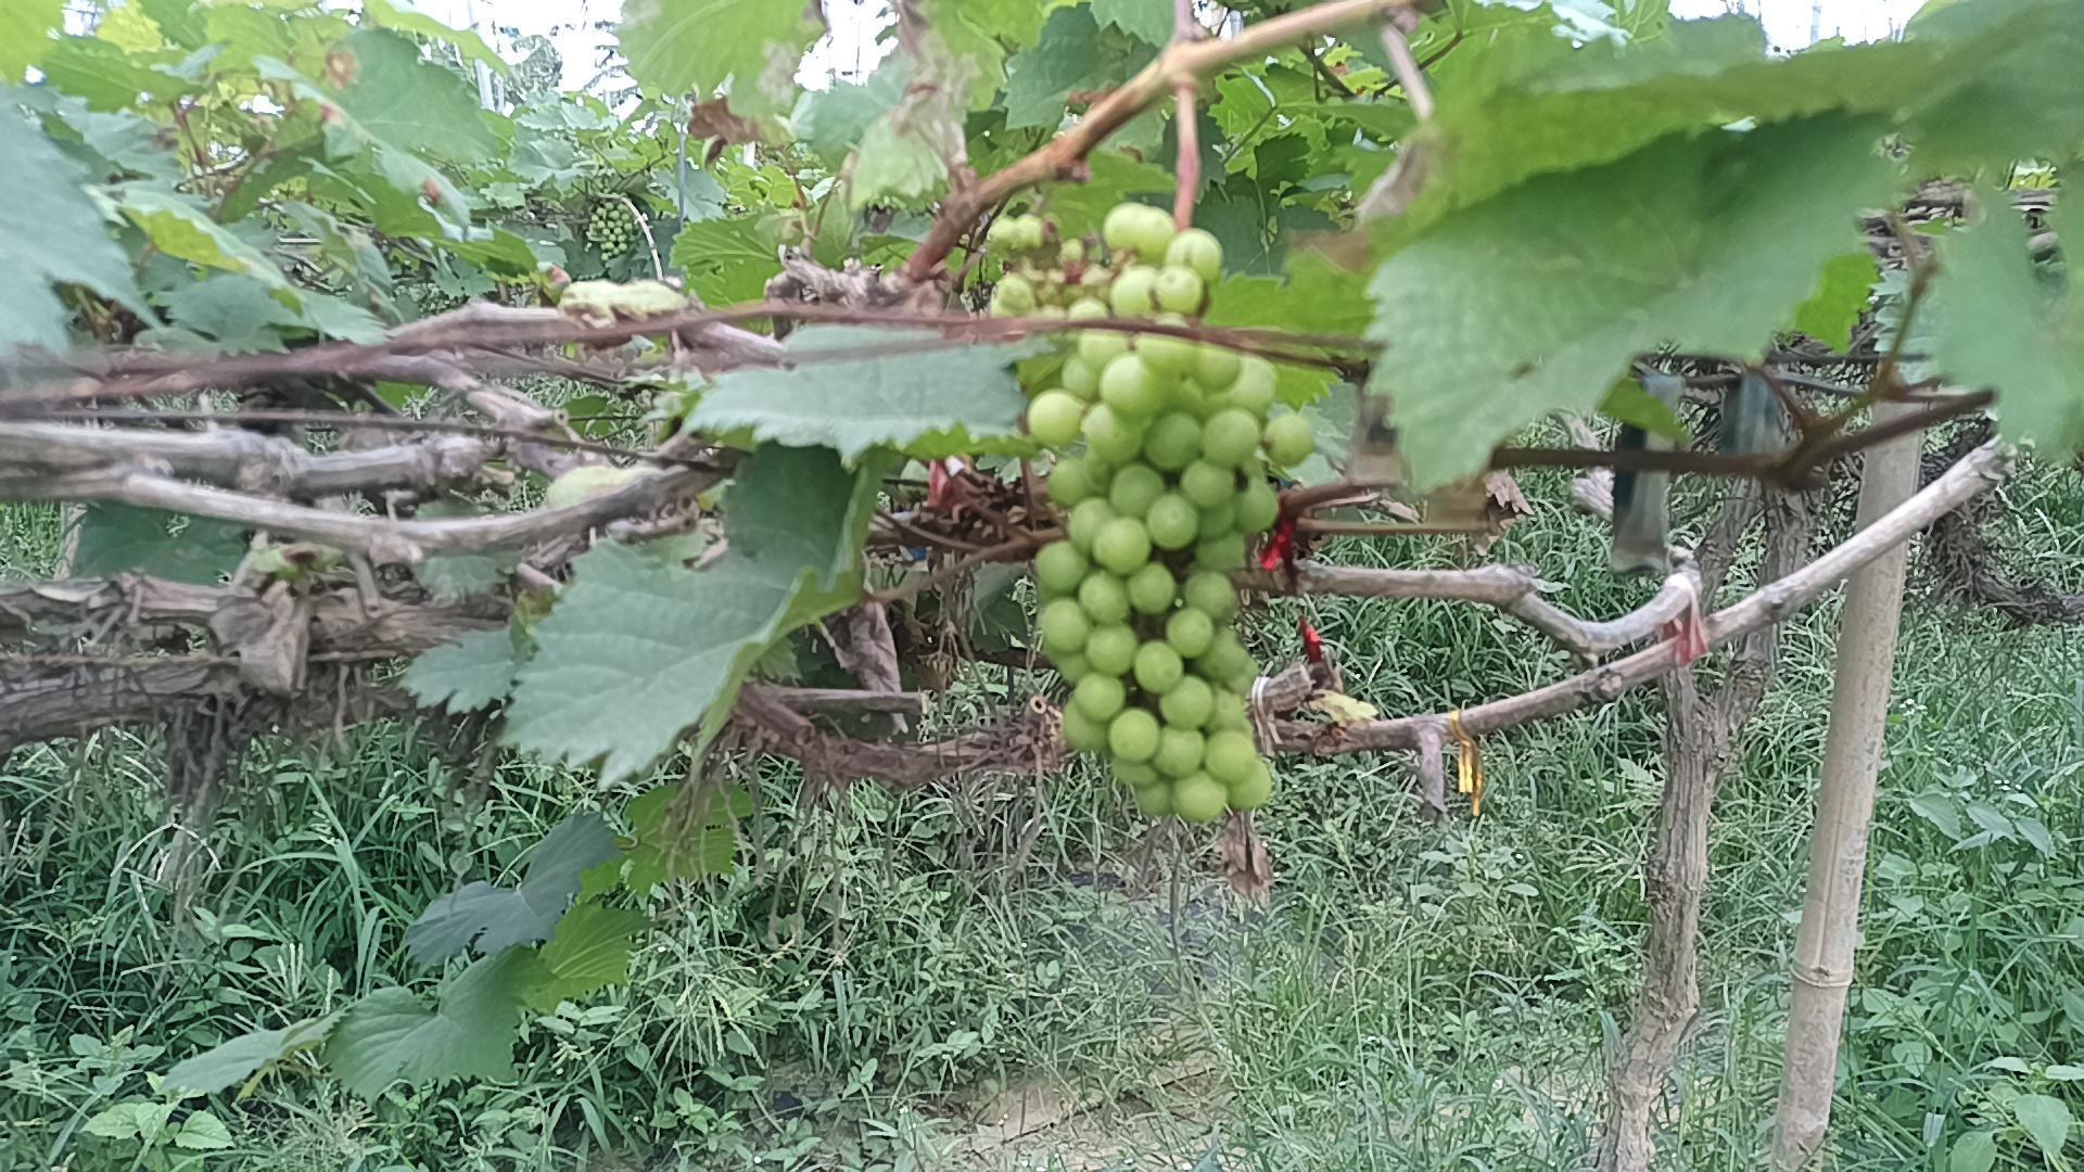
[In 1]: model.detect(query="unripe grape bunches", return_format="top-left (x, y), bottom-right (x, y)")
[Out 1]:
top-left (588, 198), bottom-right (639, 263)
top-left (988, 202), bottom-right (1221, 322)
top-left (1025, 323), bottom-right (1316, 826)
